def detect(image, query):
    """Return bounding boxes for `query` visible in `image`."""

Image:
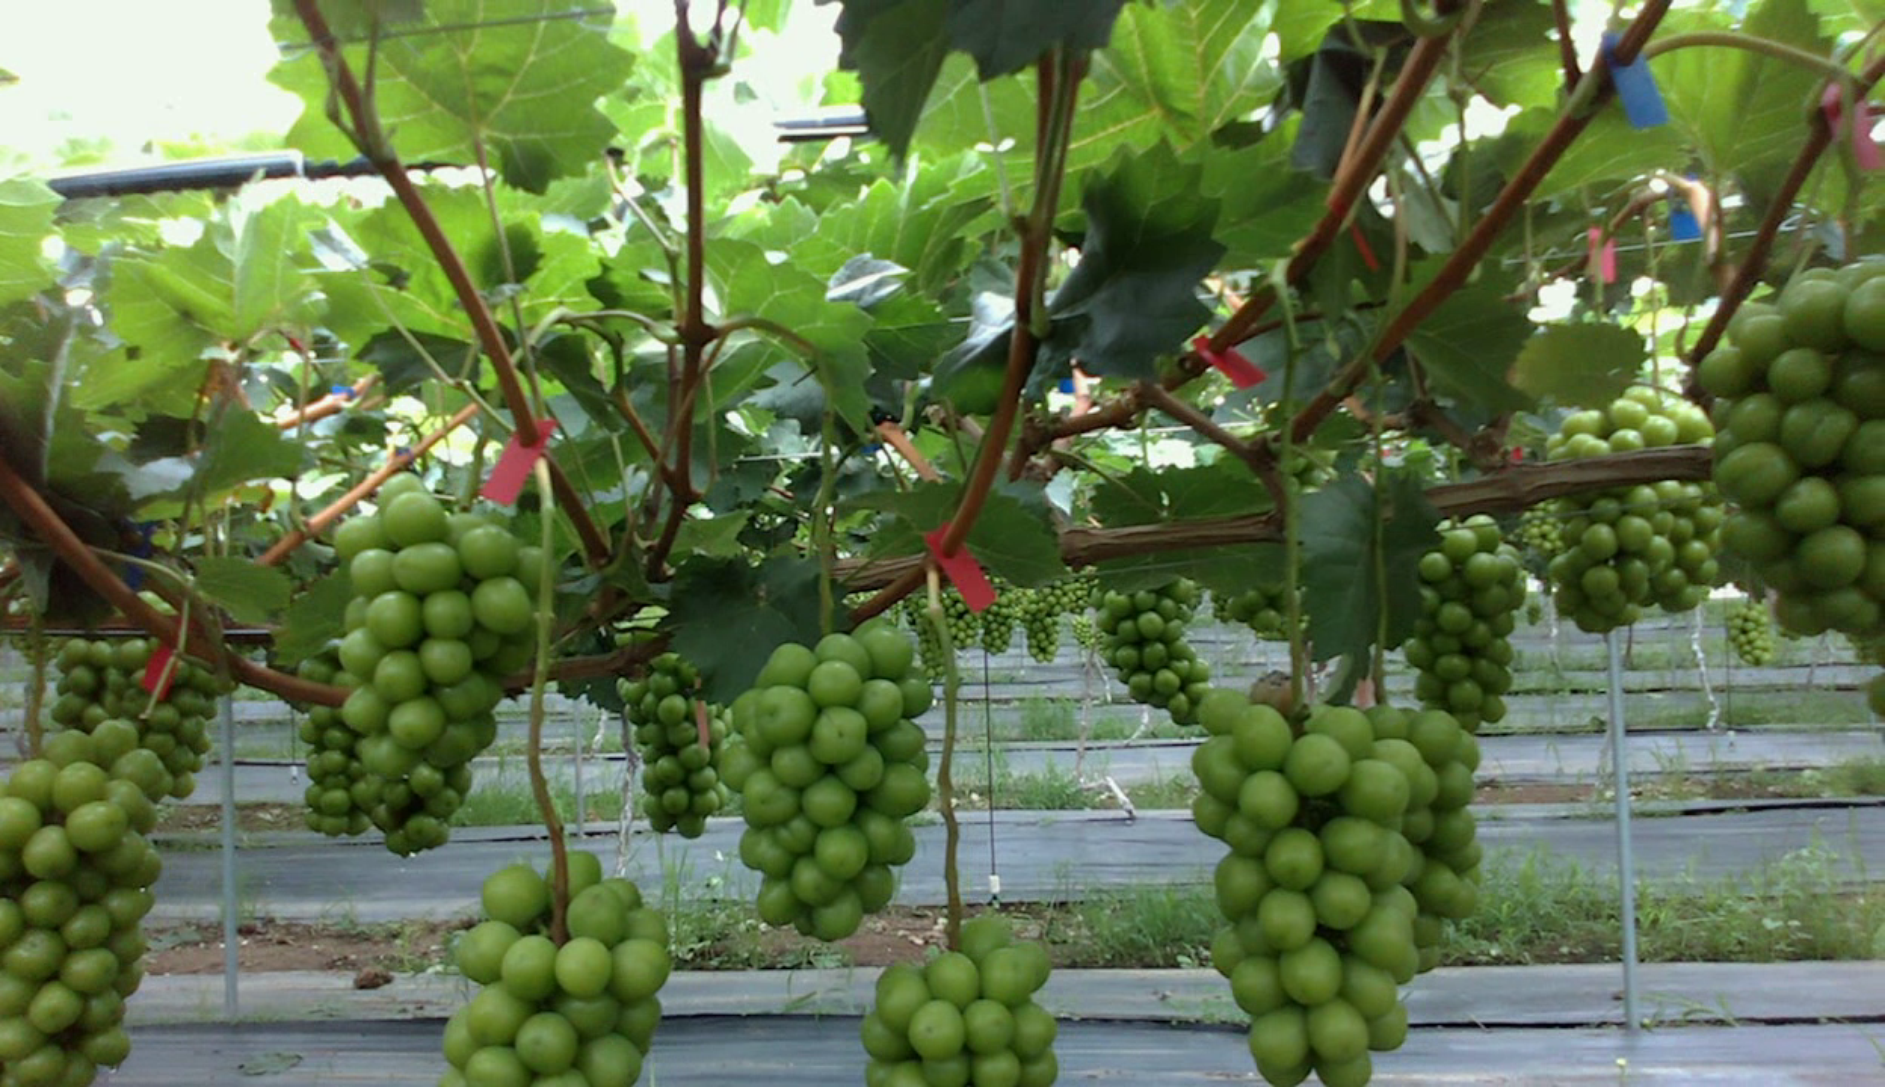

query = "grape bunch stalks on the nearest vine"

[924,568,961,951]
[527,459,571,950]
[1640,30,1873,266]
[27,601,45,759]
[1371,438,1390,704]
[714,317,835,637]
[1267,255,1308,740]
[456,414,492,515]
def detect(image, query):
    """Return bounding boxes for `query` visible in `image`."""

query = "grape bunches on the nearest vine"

[1364,702,1482,975]
[1696,255,1882,719]
[2,720,174,1085]
[859,916,1059,1085]
[716,617,933,942]
[1189,670,1438,1085]
[433,850,672,1085]
[332,470,542,858]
